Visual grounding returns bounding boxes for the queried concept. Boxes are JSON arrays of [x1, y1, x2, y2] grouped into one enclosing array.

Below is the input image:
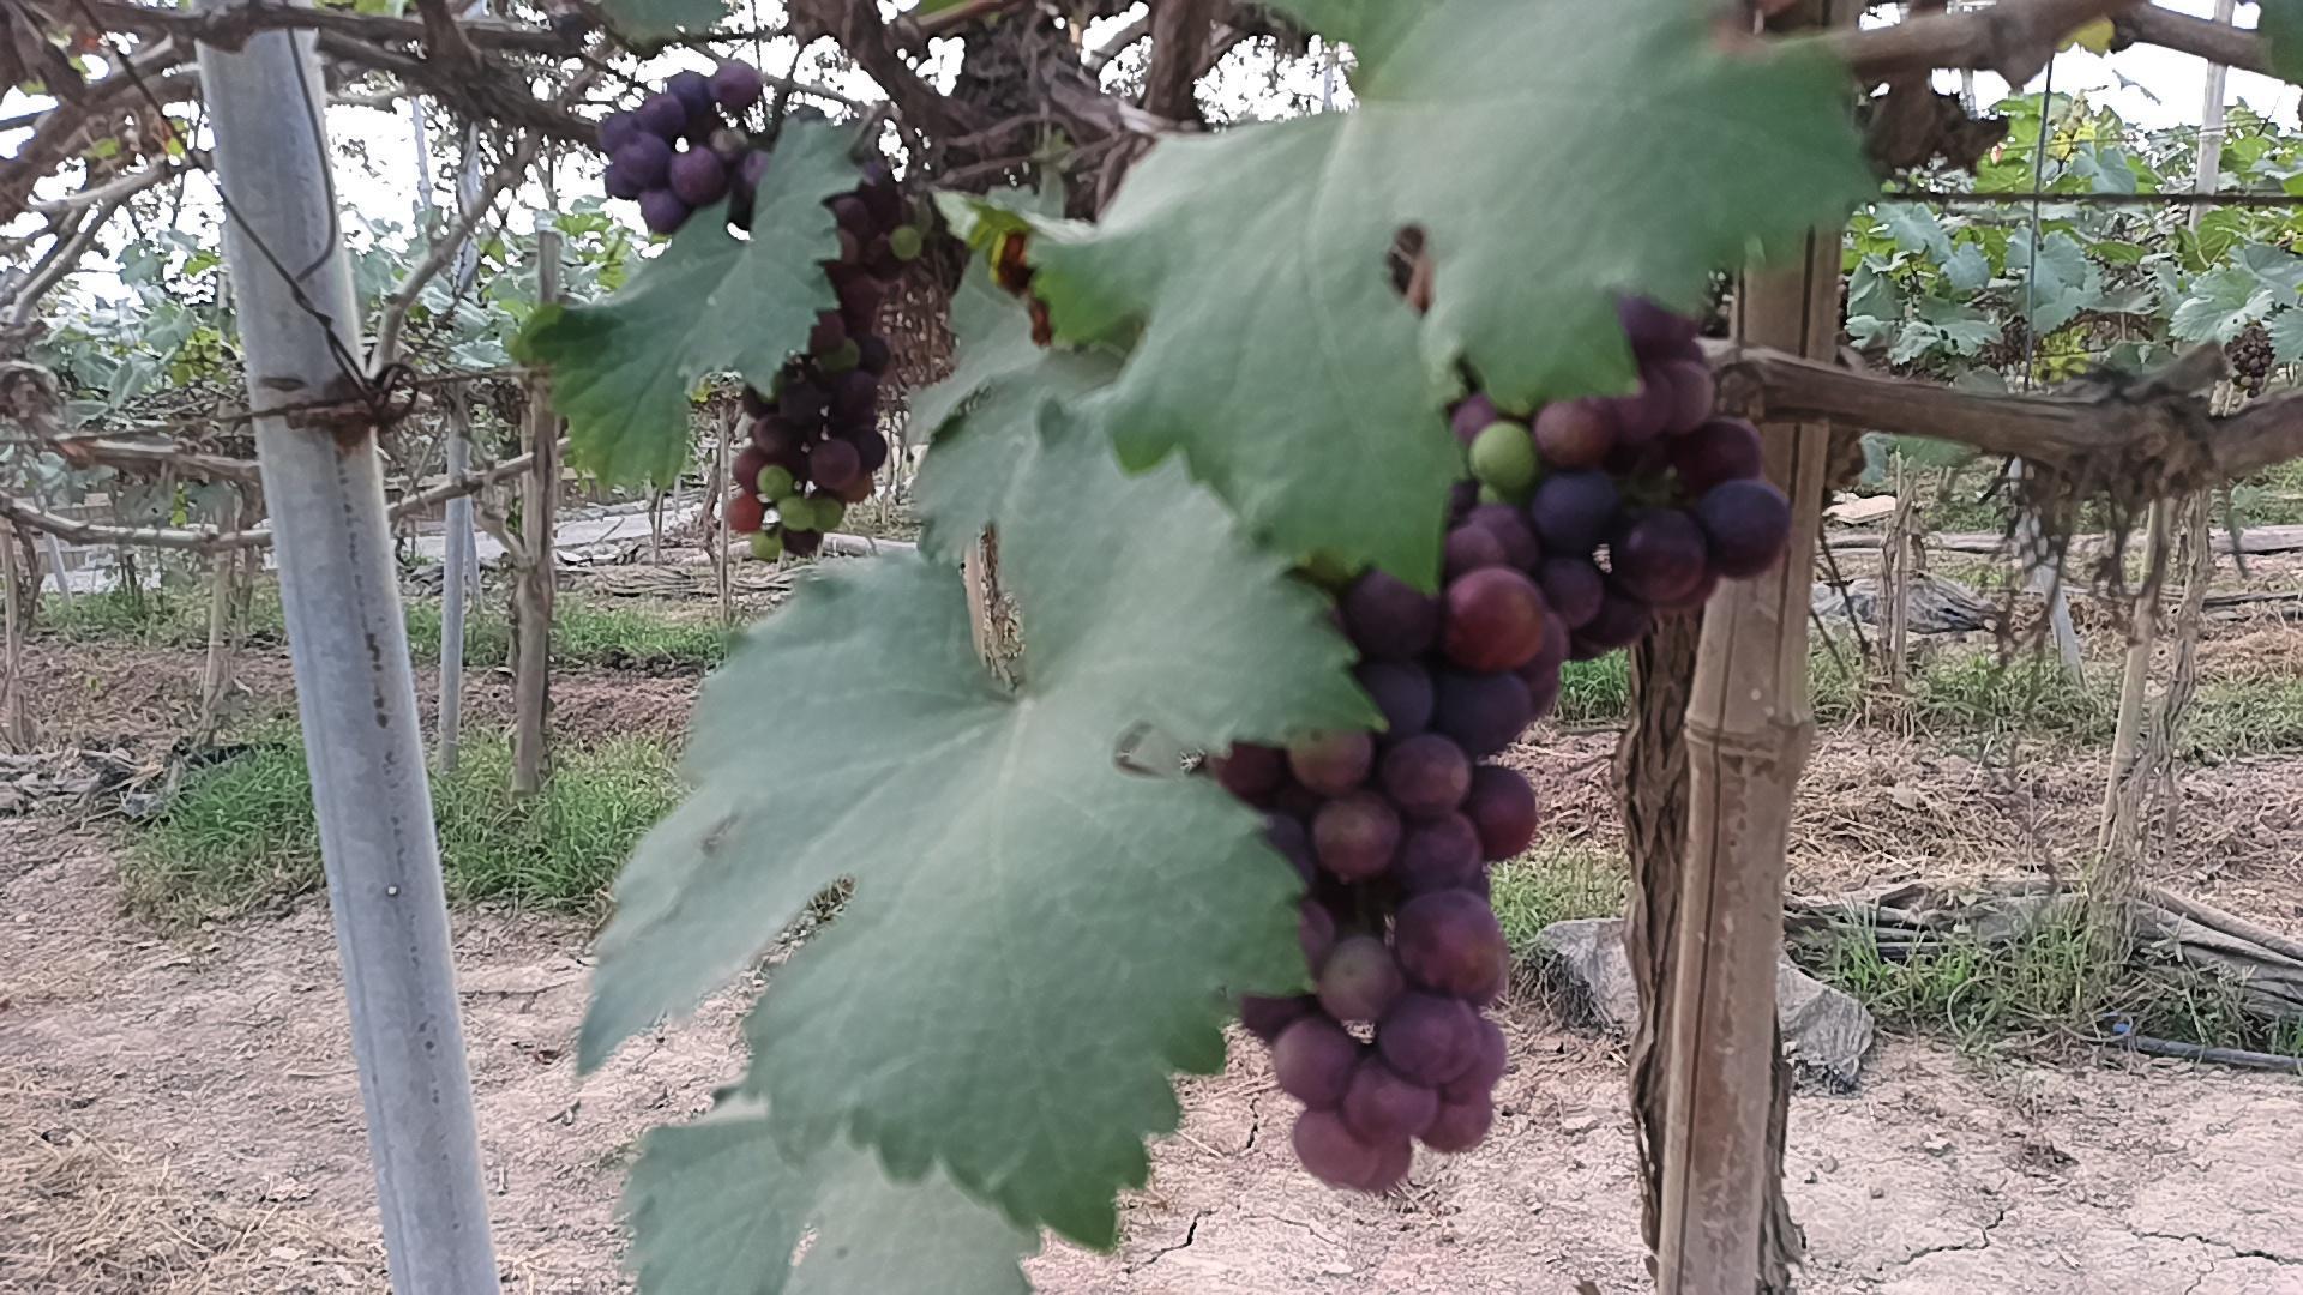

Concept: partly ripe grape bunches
[[1221, 303, 1792, 1195], [596, 65, 925, 560]]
